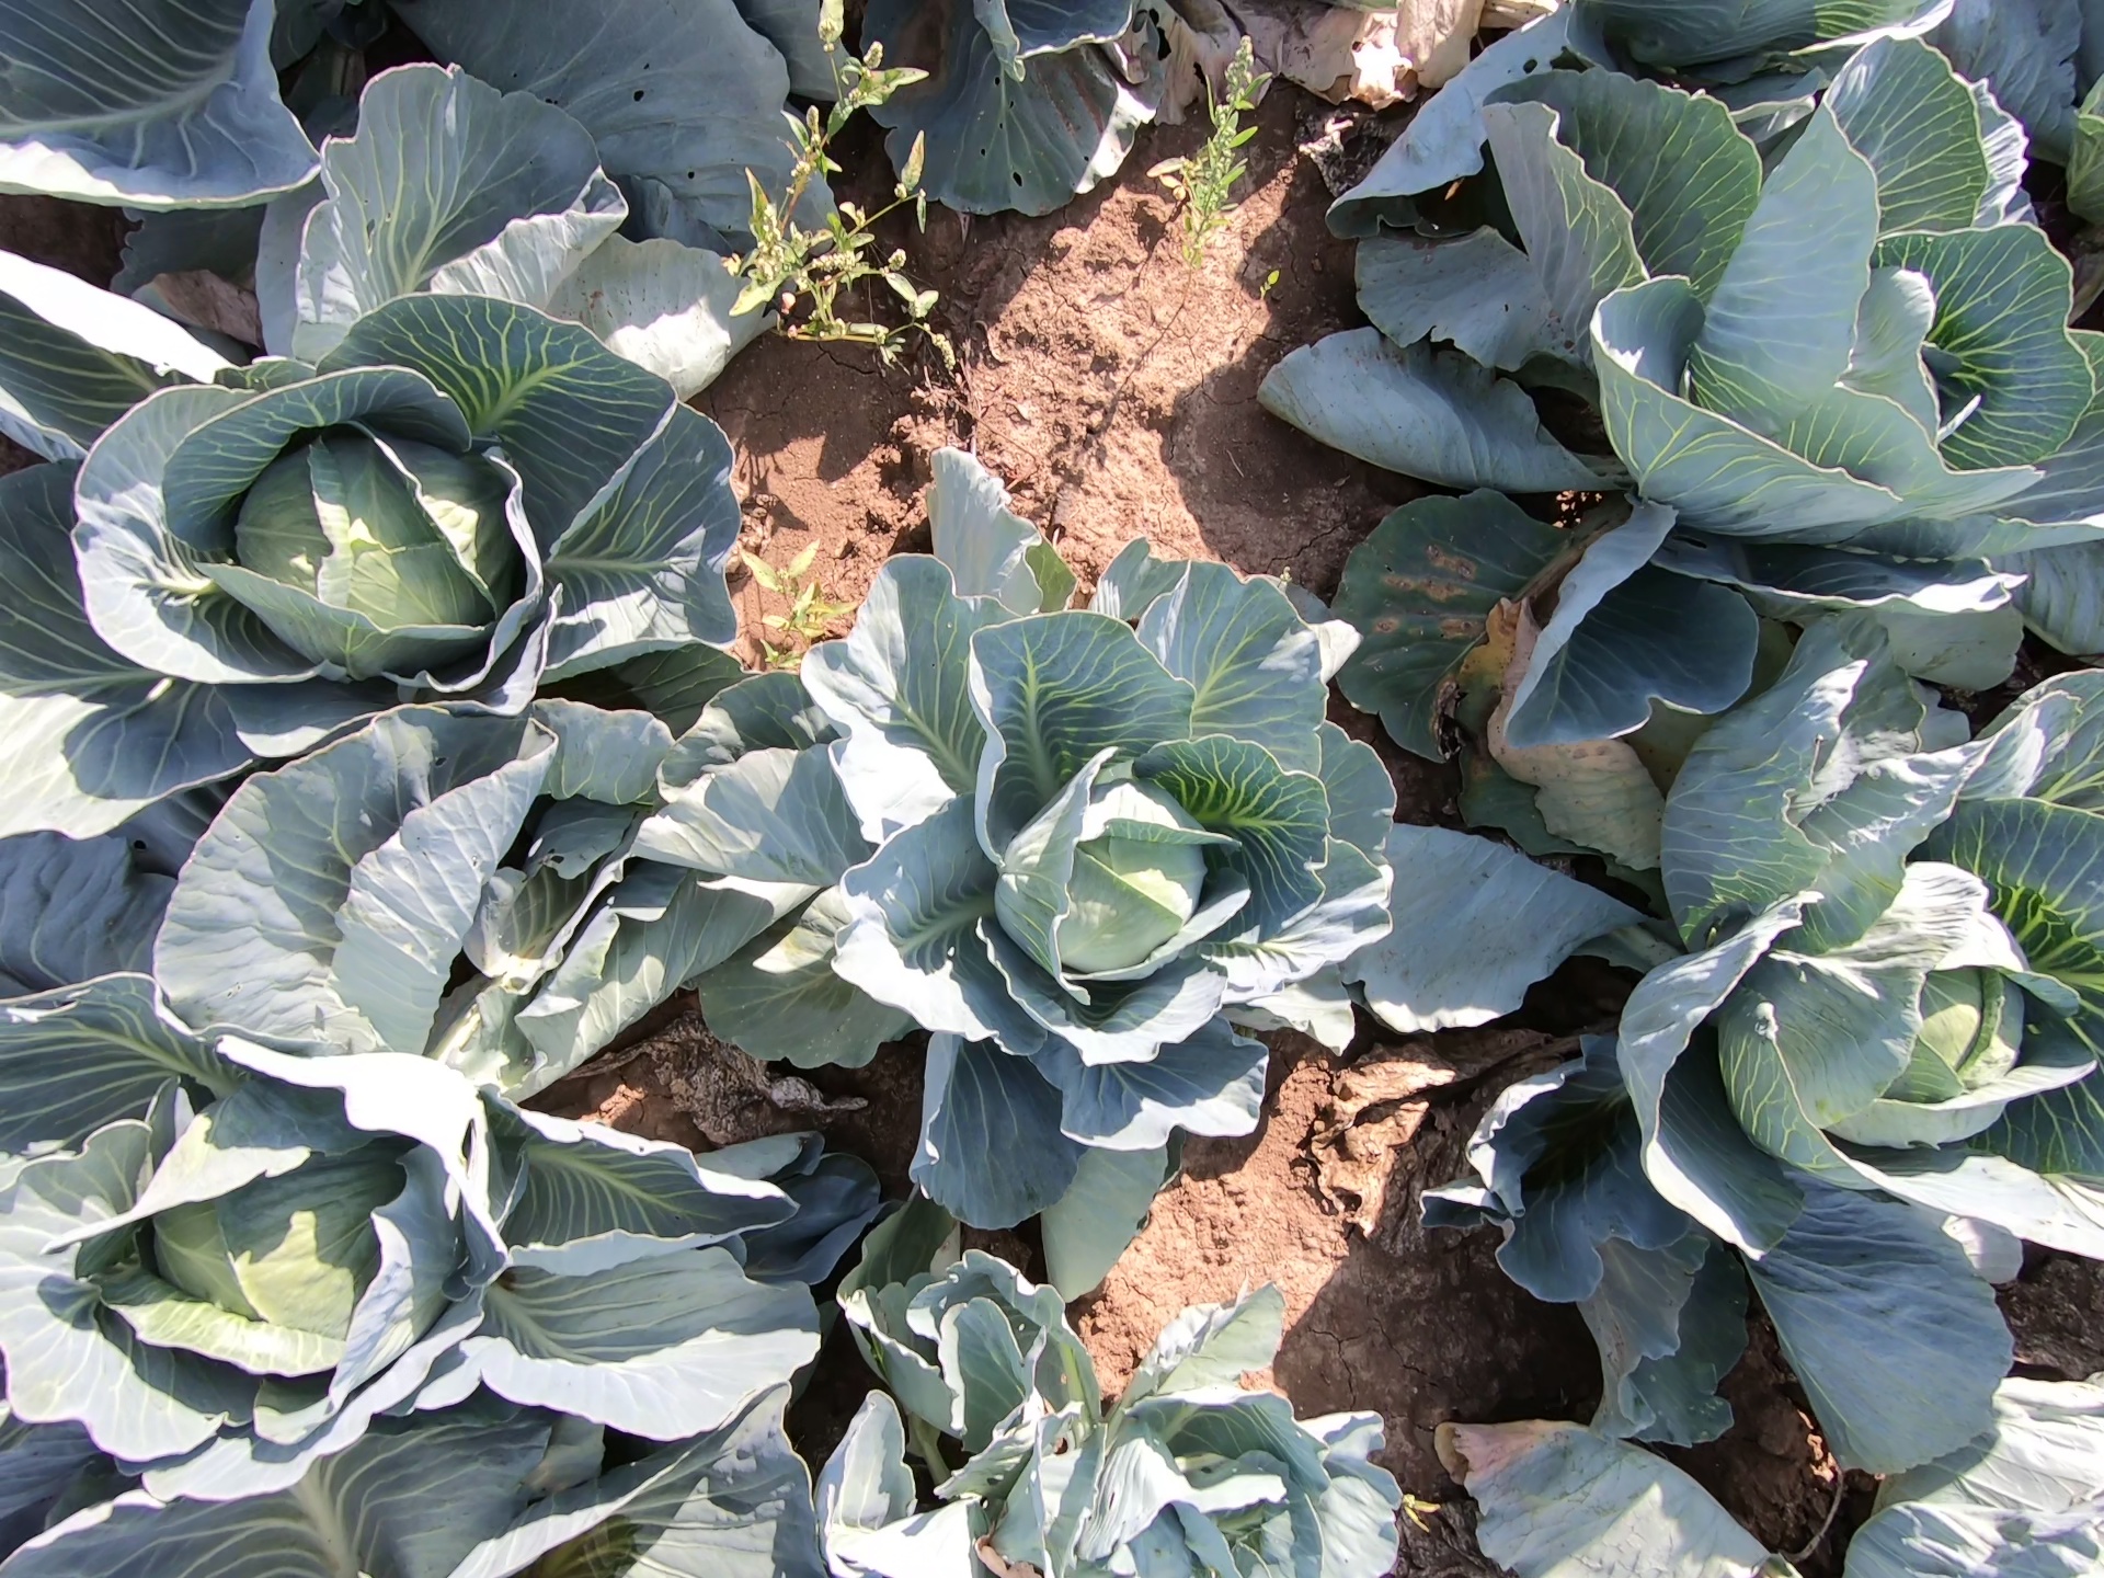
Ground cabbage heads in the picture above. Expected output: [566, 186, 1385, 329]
[1070, 1461, 1207, 1575]
[1759, 891, 2024, 1141]
[1017, 790, 1207, 969]
[150, 1093, 432, 1365]
[1742, 313, 1943, 480]
[238, 428, 512, 655]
